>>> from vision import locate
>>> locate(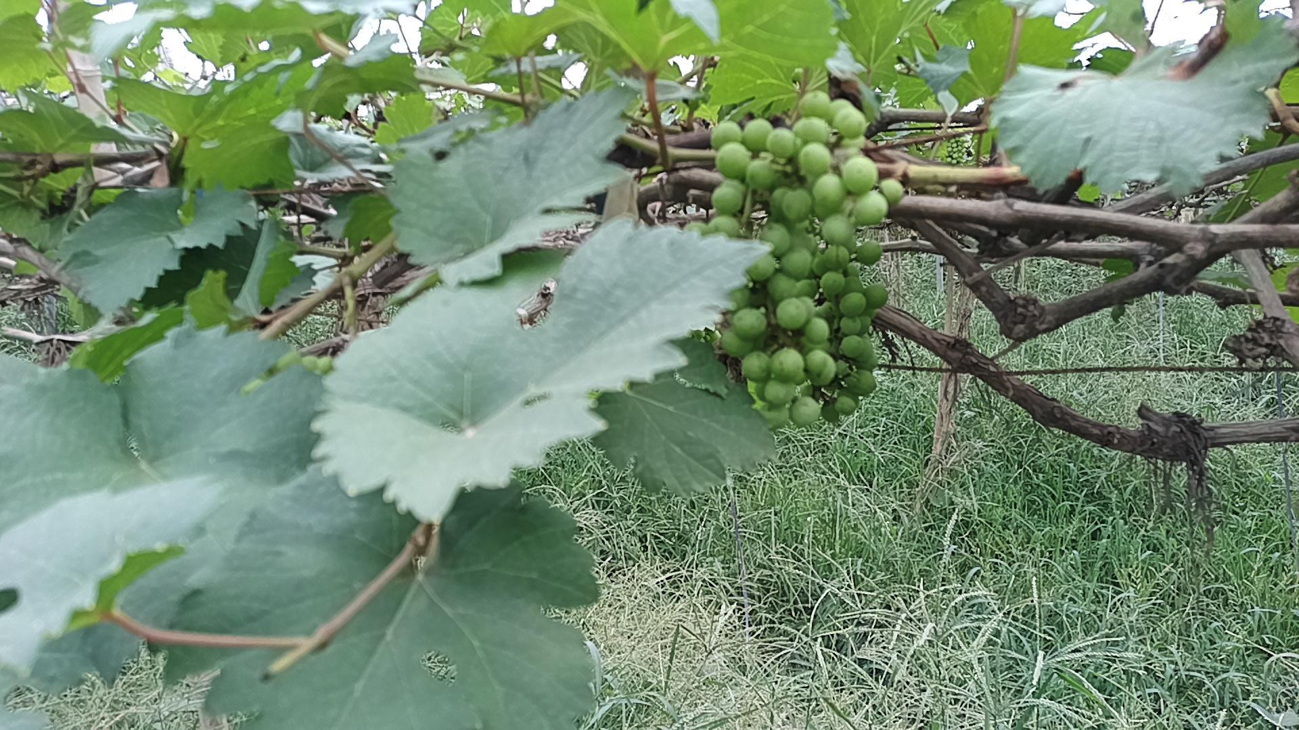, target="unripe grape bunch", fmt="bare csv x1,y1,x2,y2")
681,89,904,426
